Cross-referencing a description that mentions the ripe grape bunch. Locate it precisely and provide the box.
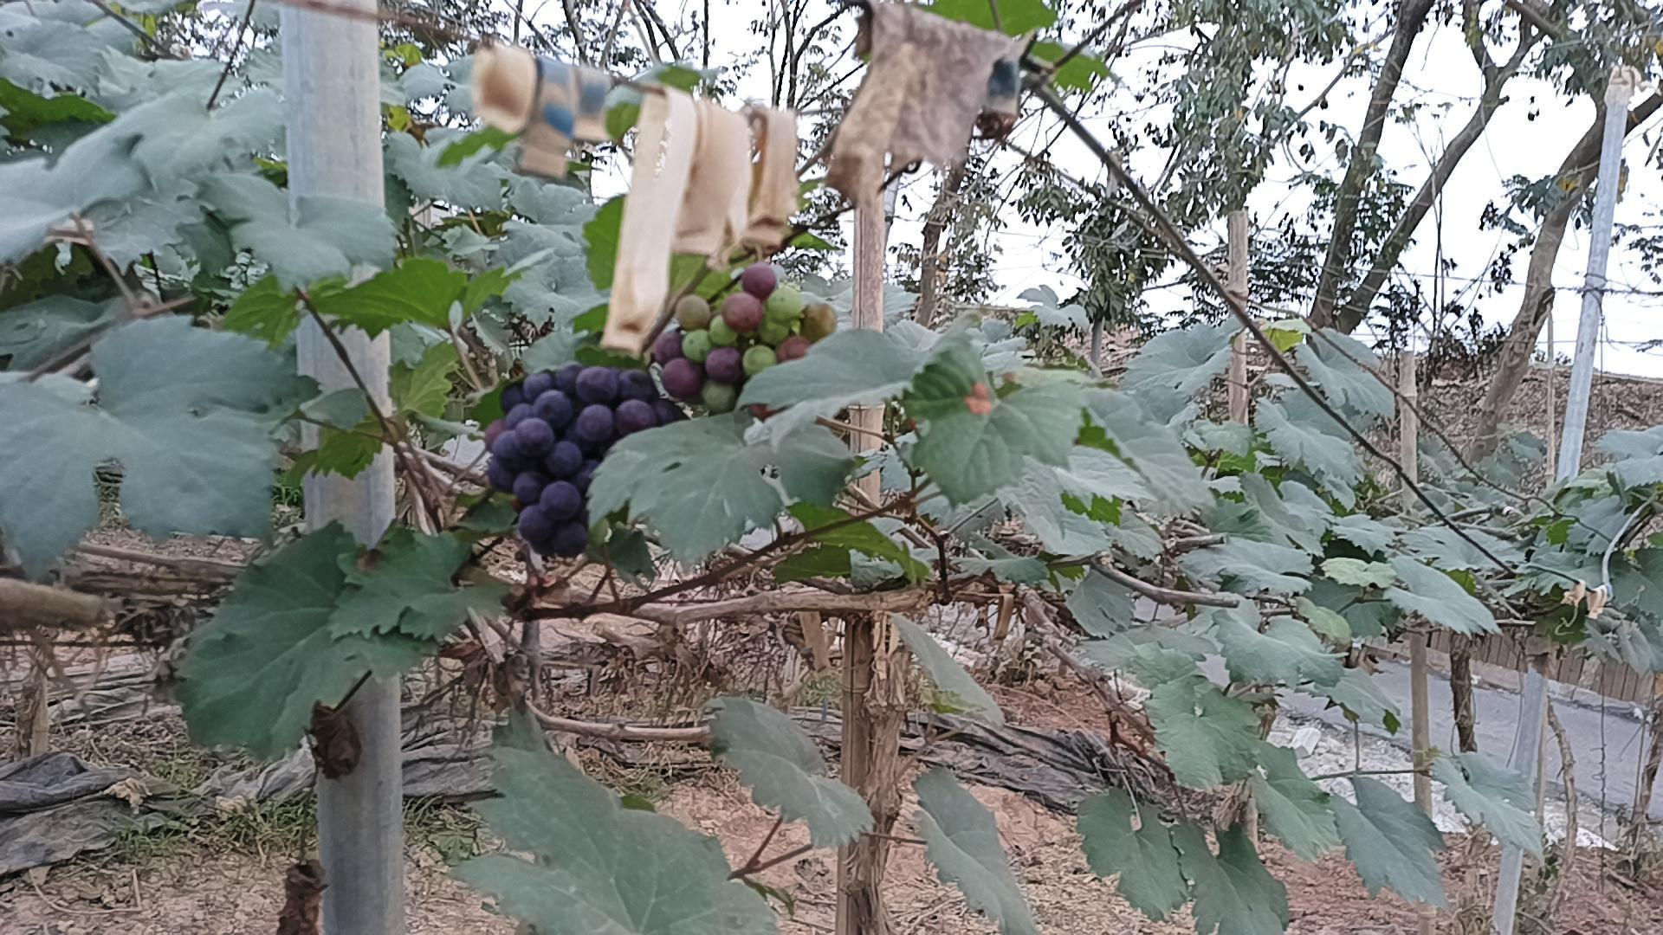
[489,364,674,557]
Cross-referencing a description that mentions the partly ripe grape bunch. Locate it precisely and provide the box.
[651,262,832,408]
